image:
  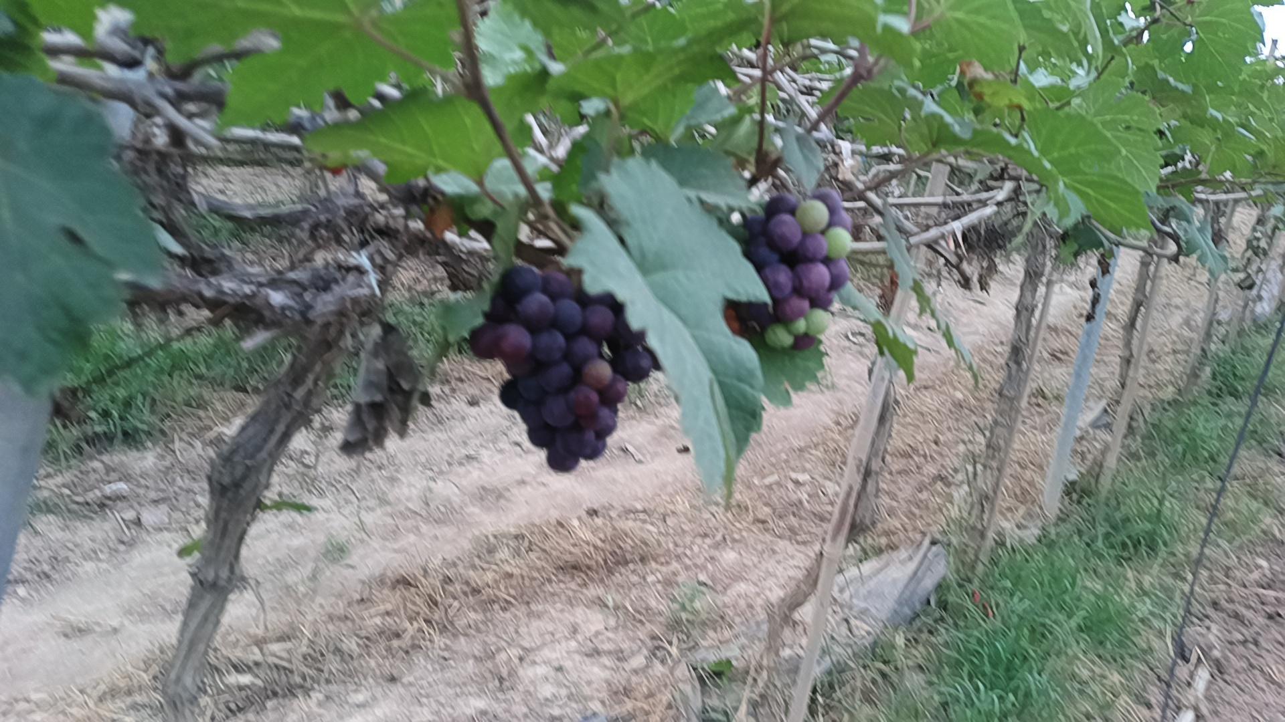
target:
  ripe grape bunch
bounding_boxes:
[470,265,659,472]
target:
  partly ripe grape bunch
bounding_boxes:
[725,188,851,350]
